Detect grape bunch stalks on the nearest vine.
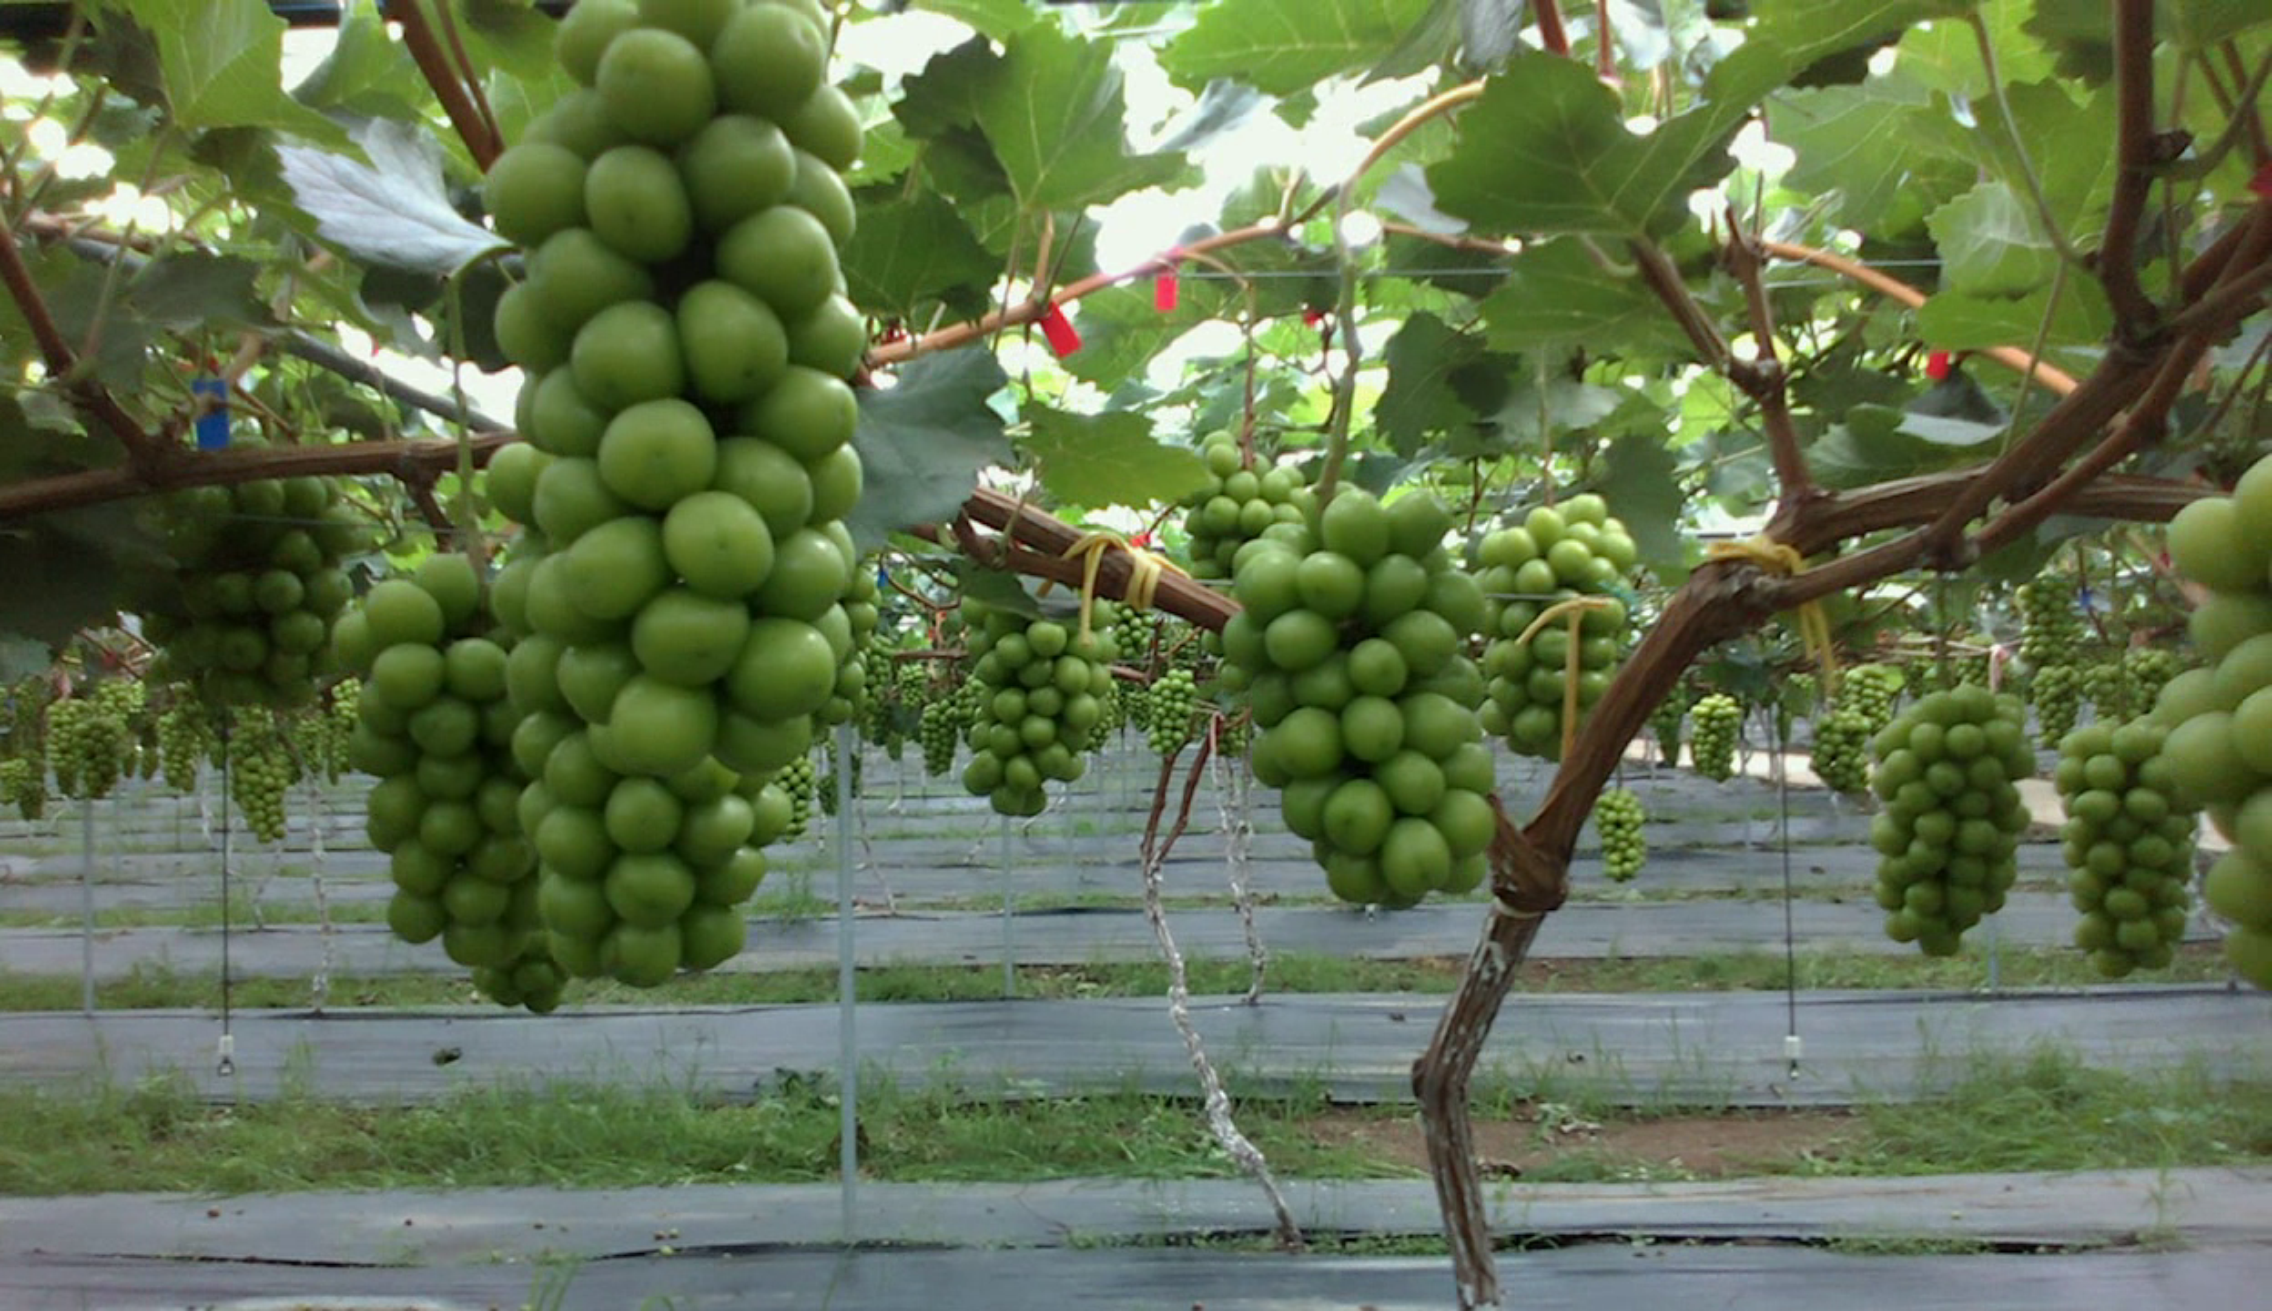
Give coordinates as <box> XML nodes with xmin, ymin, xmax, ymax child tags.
<box><xmin>442</xmin><ymin>244</ymin><xmax>521</xmax><ymax>639</ymax></box>
<box><xmin>1316</xmin><ymin>82</ymin><xmax>1484</xmax><ymax>512</ymax></box>
<box><xmin>1937</xmin><ymin>557</ymin><xmax>1948</xmax><ymax>690</ymax></box>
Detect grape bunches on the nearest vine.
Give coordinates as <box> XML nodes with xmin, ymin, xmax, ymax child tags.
<box><xmin>330</xmin><ymin>554</ymin><xmax>572</xmax><ymax>1012</ymax></box>
<box><xmin>1222</xmin><ymin>481</ymin><xmax>1496</xmax><ymax>910</ymax></box>
<box><xmin>1871</xmin><ymin>685</ymin><xmax>2035</xmax><ymax>958</ymax></box>
<box><xmin>481</xmin><ymin>0</ymin><xmax>865</xmax><ymax>989</ymax></box>
<box><xmin>2159</xmin><ymin>457</ymin><xmax>2270</xmax><ymax>992</ymax></box>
